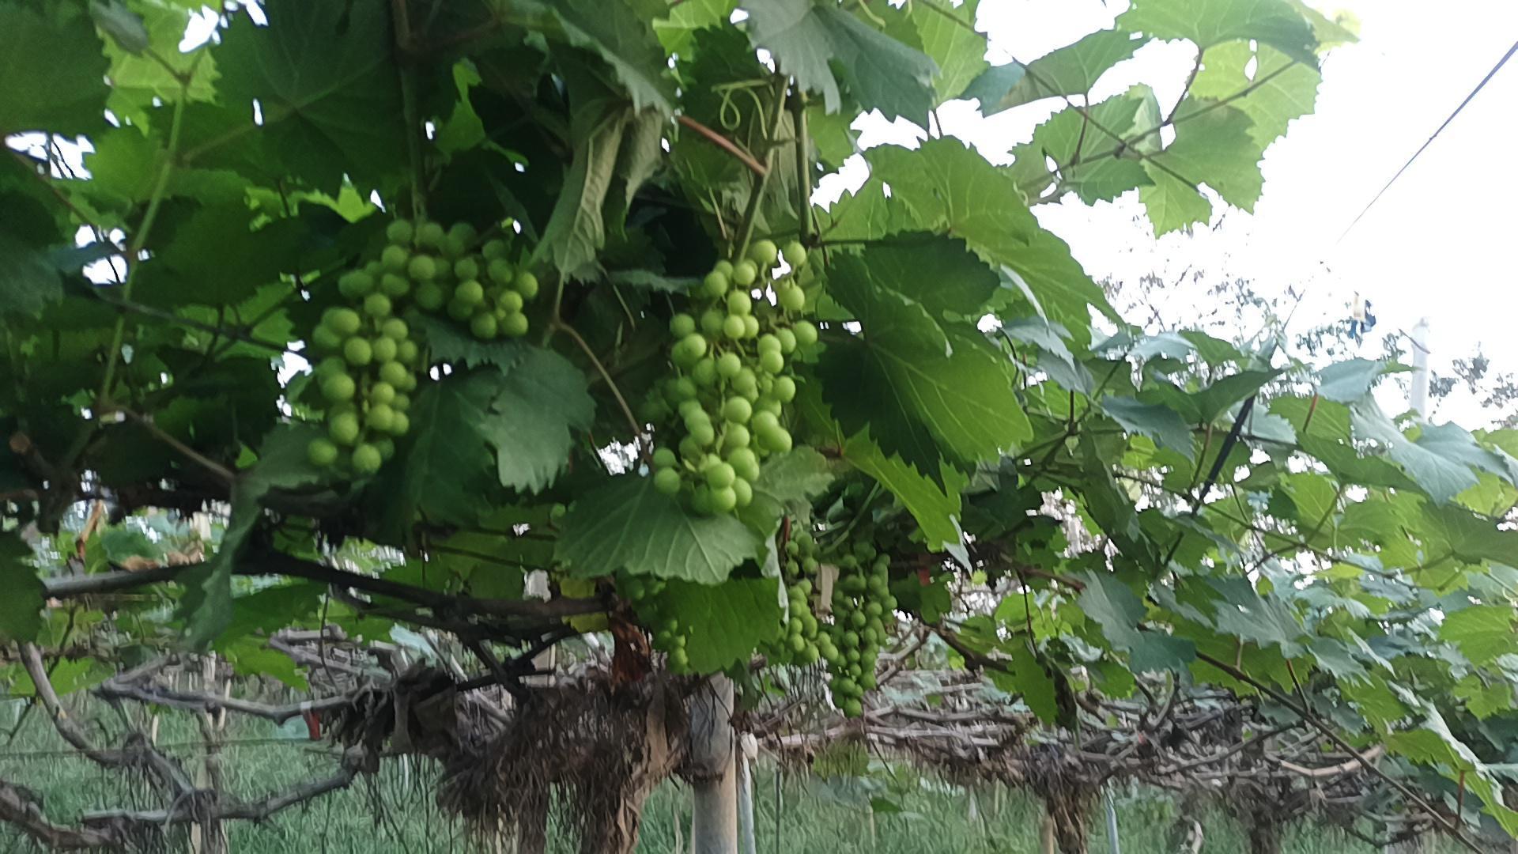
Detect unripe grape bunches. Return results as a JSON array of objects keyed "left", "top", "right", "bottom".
[
  {"left": 619, "top": 575, "right": 716, "bottom": 672},
  {"left": 655, "top": 240, "right": 818, "bottom": 512},
  {"left": 766, "top": 531, "right": 896, "bottom": 716},
  {"left": 293, "top": 220, "right": 538, "bottom": 478}
]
